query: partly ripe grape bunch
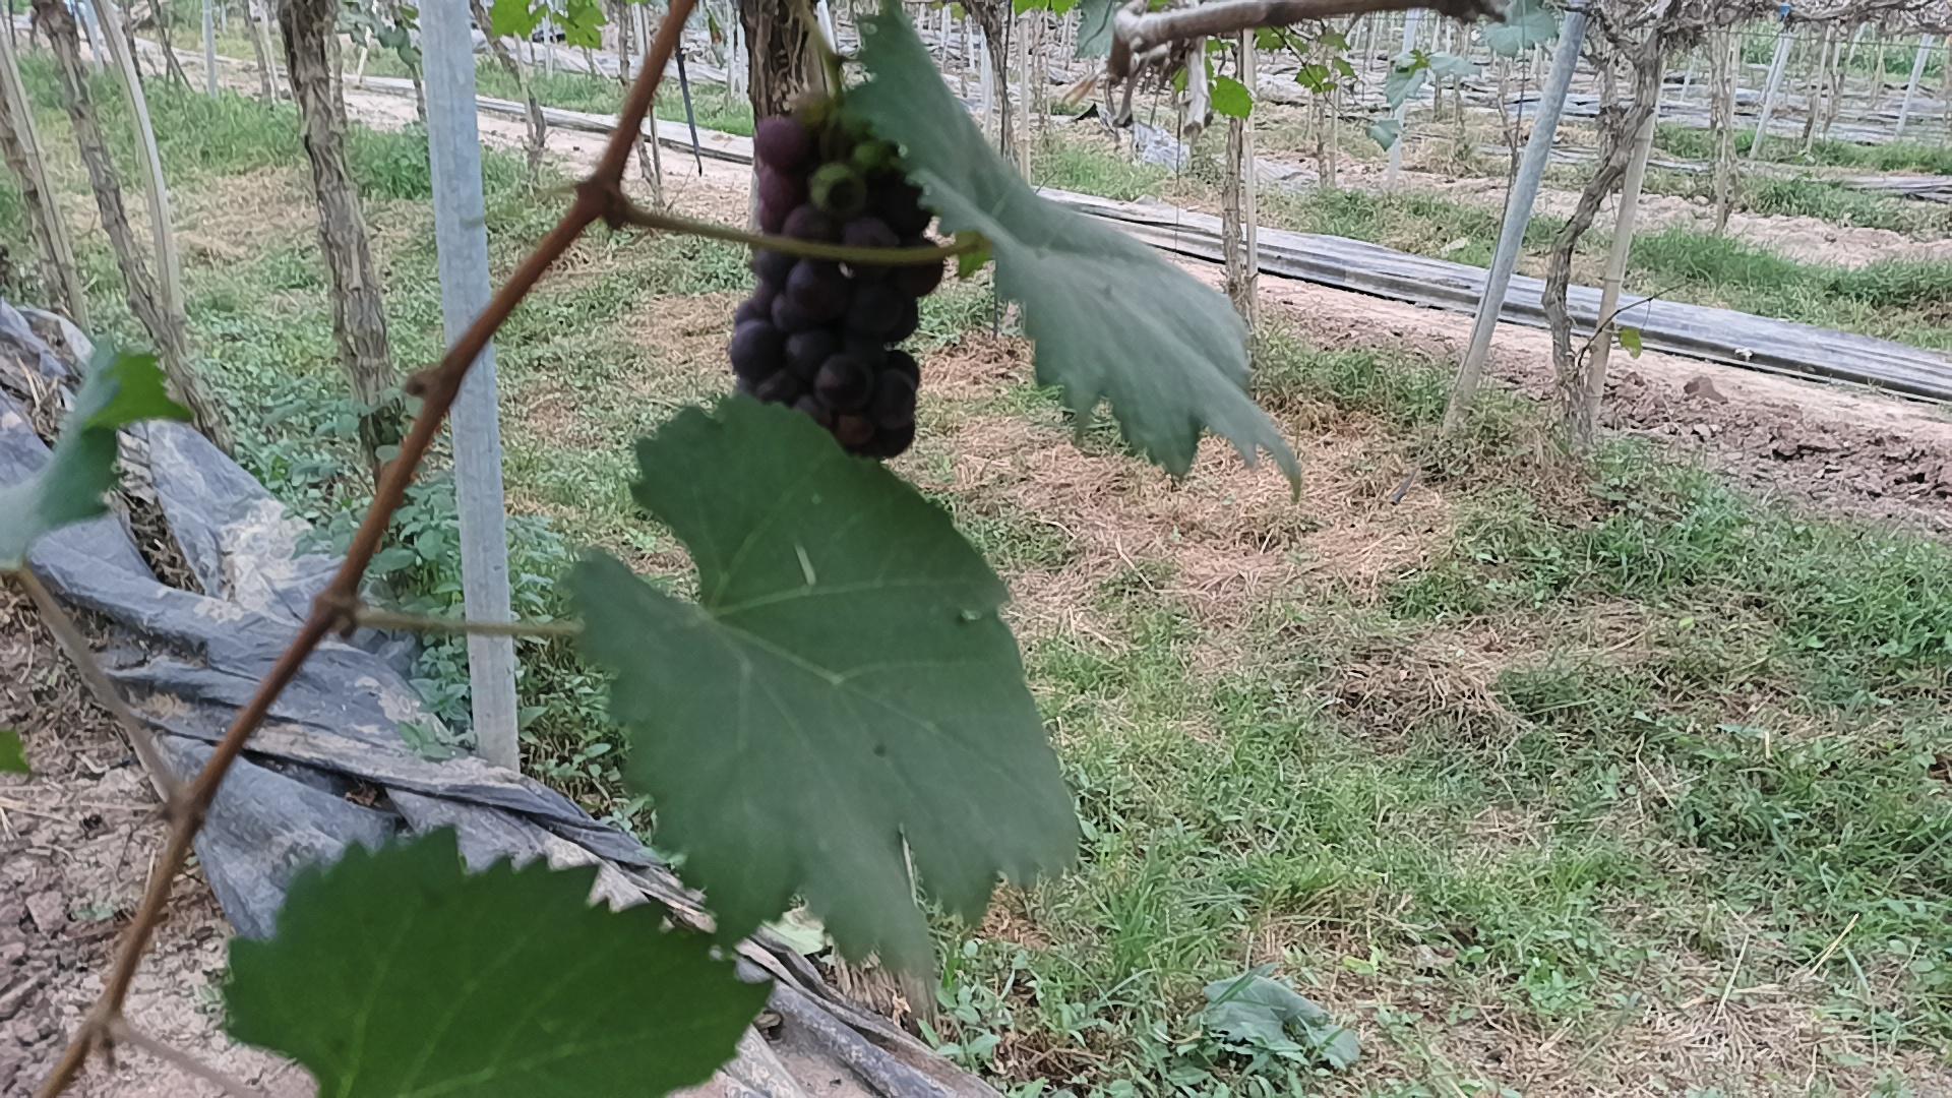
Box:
[729,96,944,459]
